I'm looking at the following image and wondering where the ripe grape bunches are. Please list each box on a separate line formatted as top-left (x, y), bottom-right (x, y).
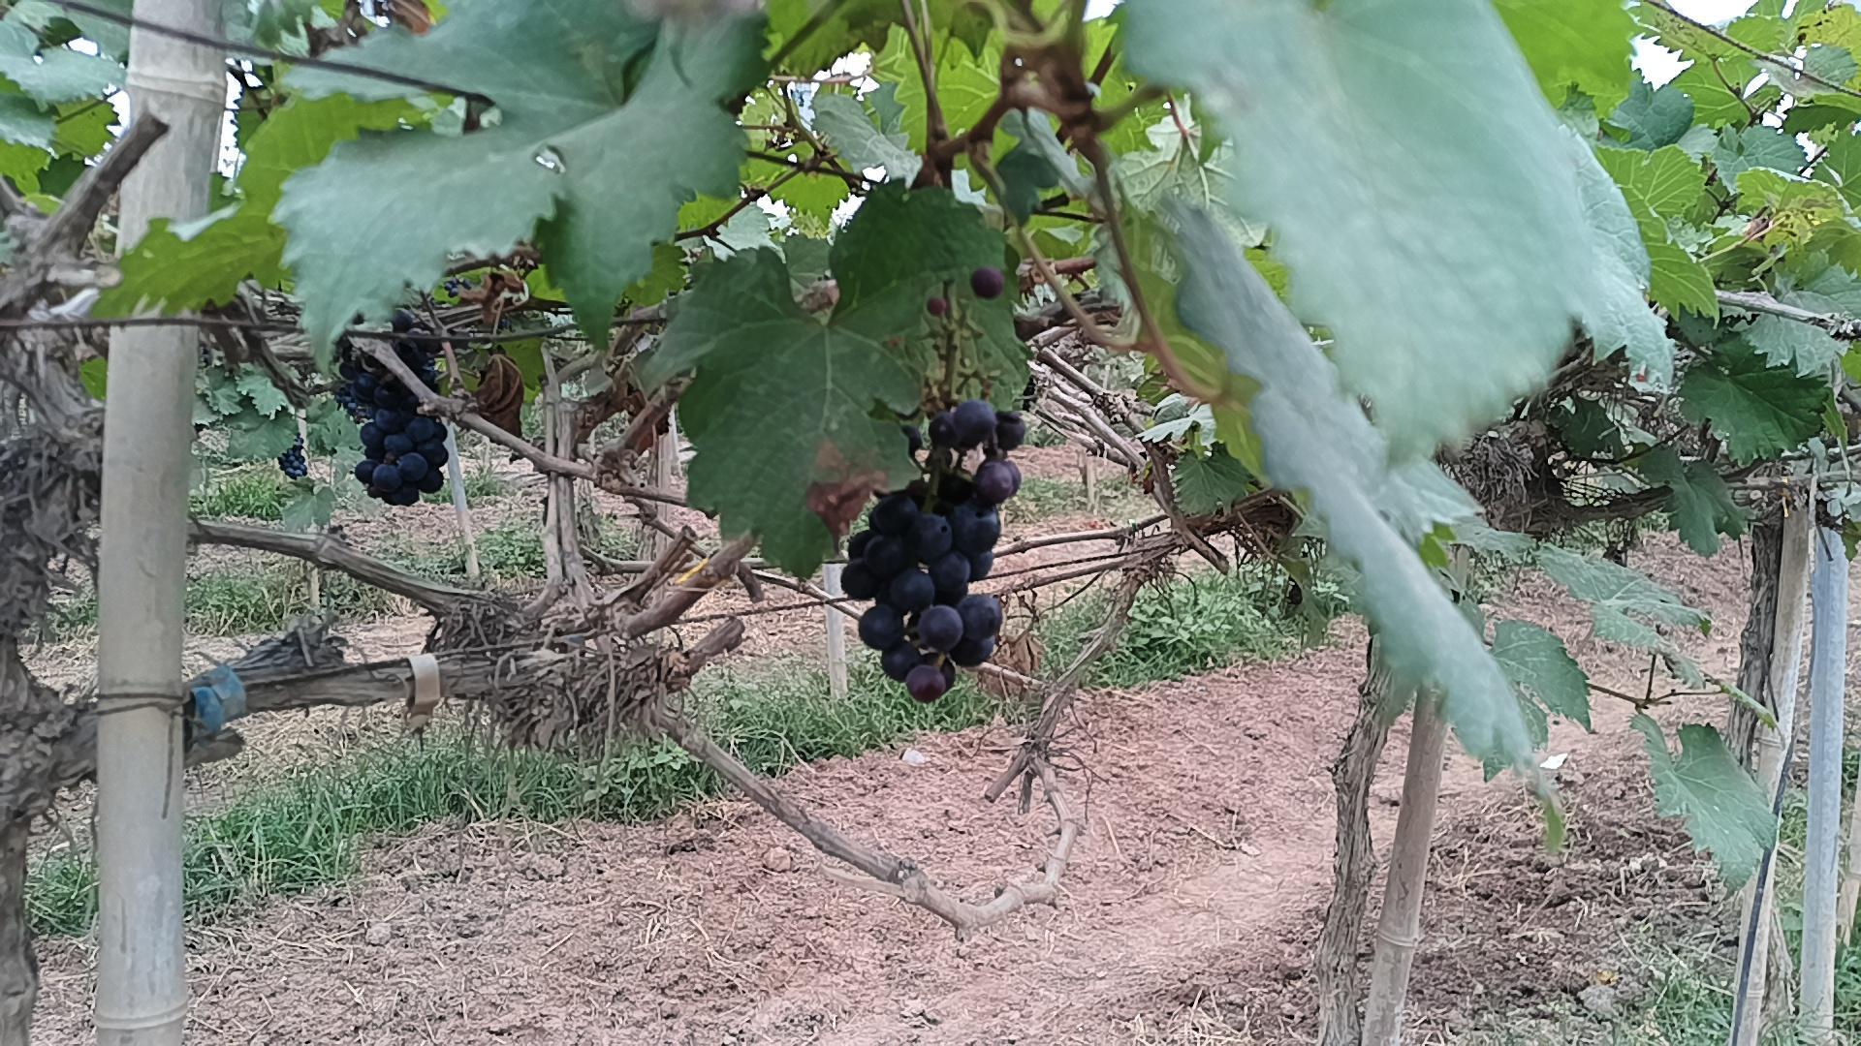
top-left (276, 436), bottom-right (309, 480)
top-left (334, 358), bottom-right (448, 505)
top-left (842, 400), bottom-right (1025, 700)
